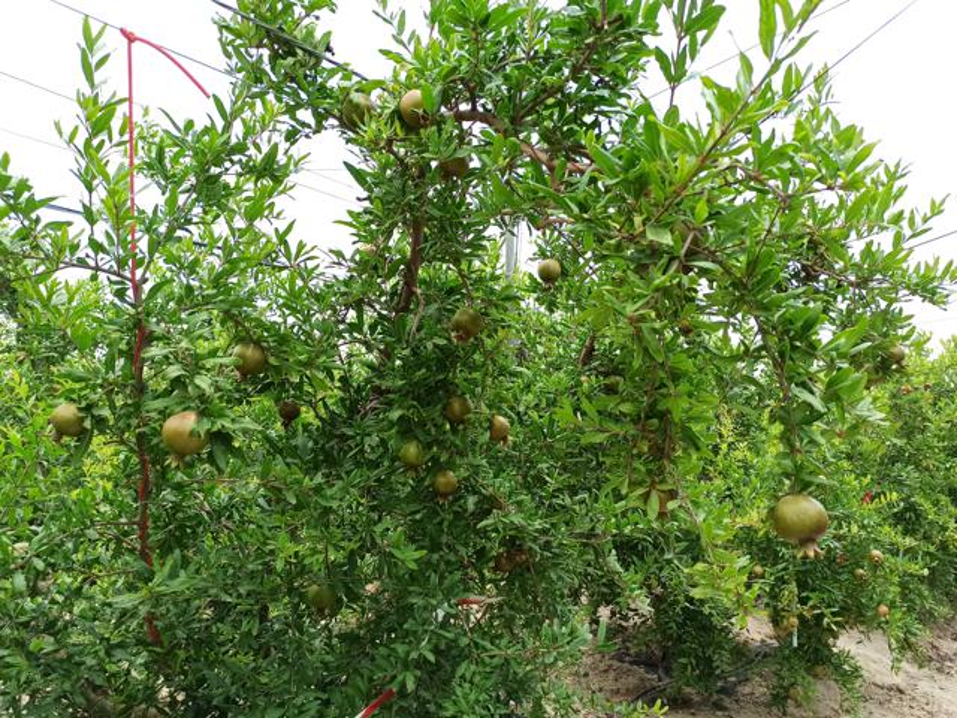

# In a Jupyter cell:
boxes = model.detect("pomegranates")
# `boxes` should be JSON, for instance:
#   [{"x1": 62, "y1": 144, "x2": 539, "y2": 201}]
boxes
[
  {"x1": 163, "y1": 411, "x2": 205, "y2": 471},
  {"x1": 341, "y1": 93, "x2": 374, "y2": 130},
  {"x1": 876, "y1": 603, "x2": 890, "y2": 621},
  {"x1": 749, "y1": 564, "x2": 766, "y2": 579},
  {"x1": 489, "y1": 414, "x2": 511, "y2": 444},
  {"x1": 307, "y1": 583, "x2": 342, "y2": 618},
  {"x1": 398, "y1": 440, "x2": 425, "y2": 468},
  {"x1": 867, "y1": 549, "x2": 885, "y2": 567},
  {"x1": 399, "y1": 90, "x2": 429, "y2": 129},
  {"x1": 773, "y1": 492, "x2": 828, "y2": 561},
  {"x1": 438, "y1": 157, "x2": 468, "y2": 181},
  {"x1": 489, "y1": 555, "x2": 516, "y2": 574},
  {"x1": 48, "y1": 404, "x2": 85, "y2": 443},
  {"x1": 443, "y1": 395, "x2": 473, "y2": 426},
  {"x1": 431, "y1": 470, "x2": 459, "y2": 501},
  {"x1": 278, "y1": 401, "x2": 302, "y2": 429},
  {"x1": 890, "y1": 346, "x2": 906, "y2": 368},
  {"x1": 452, "y1": 307, "x2": 483, "y2": 343},
  {"x1": 537, "y1": 259, "x2": 562, "y2": 290},
  {"x1": 656, "y1": 489, "x2": 676, "y2": 512},
  {"x1": 232, "y1": 343, "x2": 266, "y2": 375}
]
